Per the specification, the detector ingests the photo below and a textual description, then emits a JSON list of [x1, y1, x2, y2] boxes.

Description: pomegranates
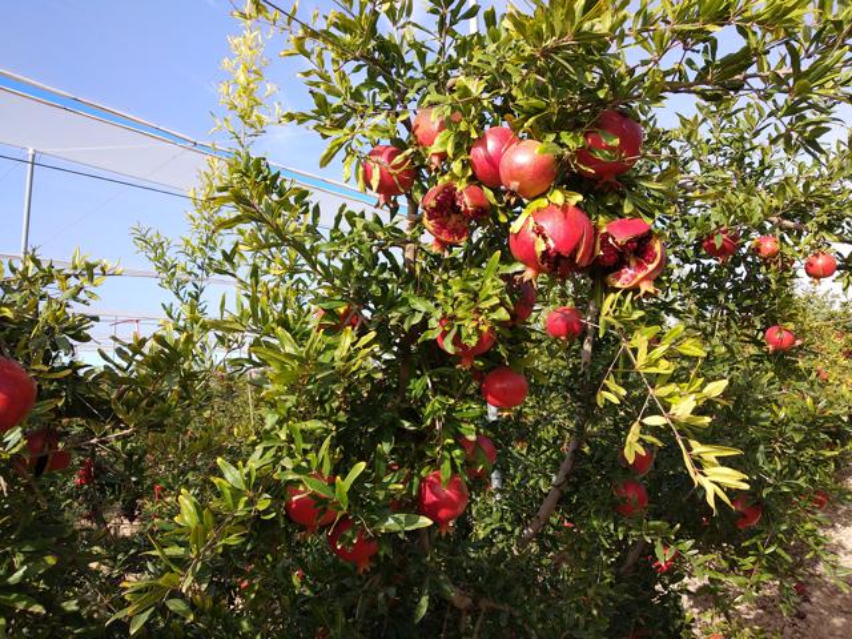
[[421, 181, 491, 256], [619, 447, 654, 478], [0, 355, 36, 431], [576, 109, 642, 193], [734, 497, 760, 529], [700, 229, 739, 265], [615, 478, 650, 514], [805, 252, 837, 288], [595, 218, 666, 298], [73, 457, 95, 486], [547, 305, 583, 341], [411, 106, 462, 176], [459, 435, 497, 481], [509, 204, 600, 292], [652, 544, 675, 575], [498, 138, 559, 205], [286, 487, 338, 535], [362, 144, 417, 210], [27, 429, 71, 473], [470, 125, 522, 192], [755, 234, 780, 260], [482, 366, 529, 419], [325, 519, 378, 575], [811, 490, 828, 511], [418, 467, 469, 539], [499, 278, 535, 327], [437, 317, 497, 371], [764, 325, 796, 355]]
